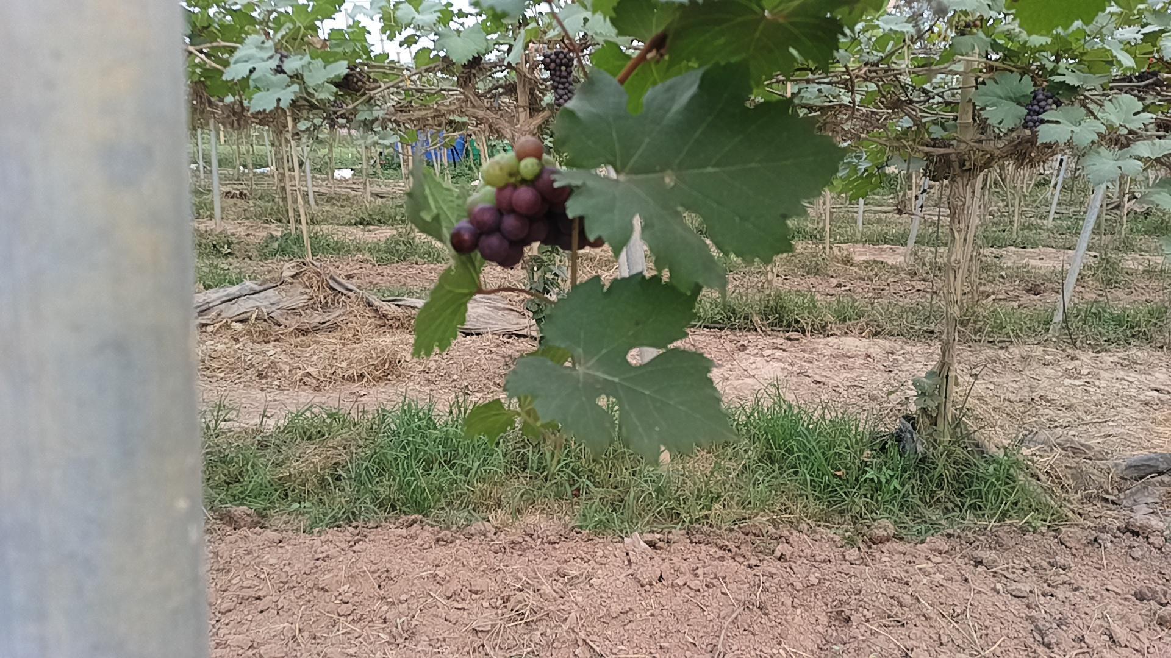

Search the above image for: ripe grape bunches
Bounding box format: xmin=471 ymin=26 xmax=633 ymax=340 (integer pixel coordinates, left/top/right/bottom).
xmin=328 ymin=65 xmax=379 ymax=93
xmin=1022 ymin=87 xmax=1065 ymax=134
xmin=323 ymin=99 xmax=354 ymax=129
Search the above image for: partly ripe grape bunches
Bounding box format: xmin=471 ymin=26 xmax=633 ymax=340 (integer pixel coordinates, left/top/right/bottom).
xmin=542 ymin=49 xmax=578 ymax=112
xmin=954 ymin=19 xmax=981 ymax=37
xmin=450 ymin=136 xmax=605 ymax=267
